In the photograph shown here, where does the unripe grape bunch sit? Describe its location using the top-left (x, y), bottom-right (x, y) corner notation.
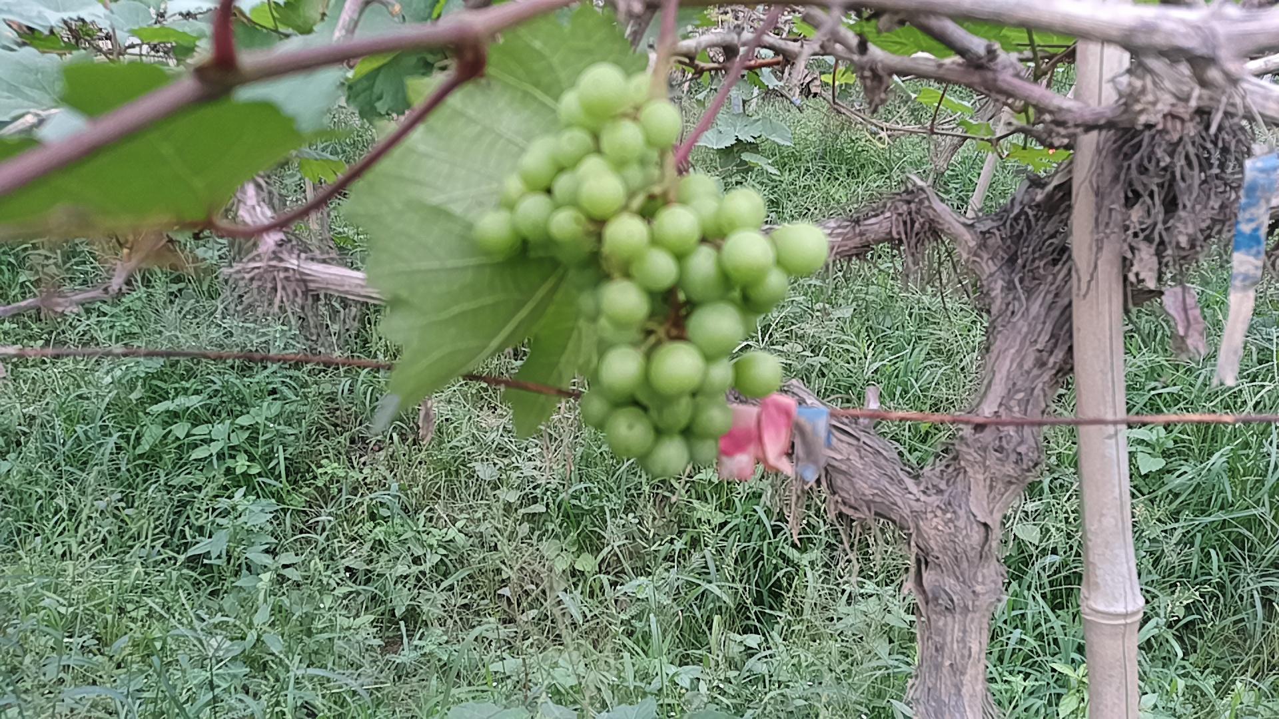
top-left (474, 67), bottom-right (827, 476)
